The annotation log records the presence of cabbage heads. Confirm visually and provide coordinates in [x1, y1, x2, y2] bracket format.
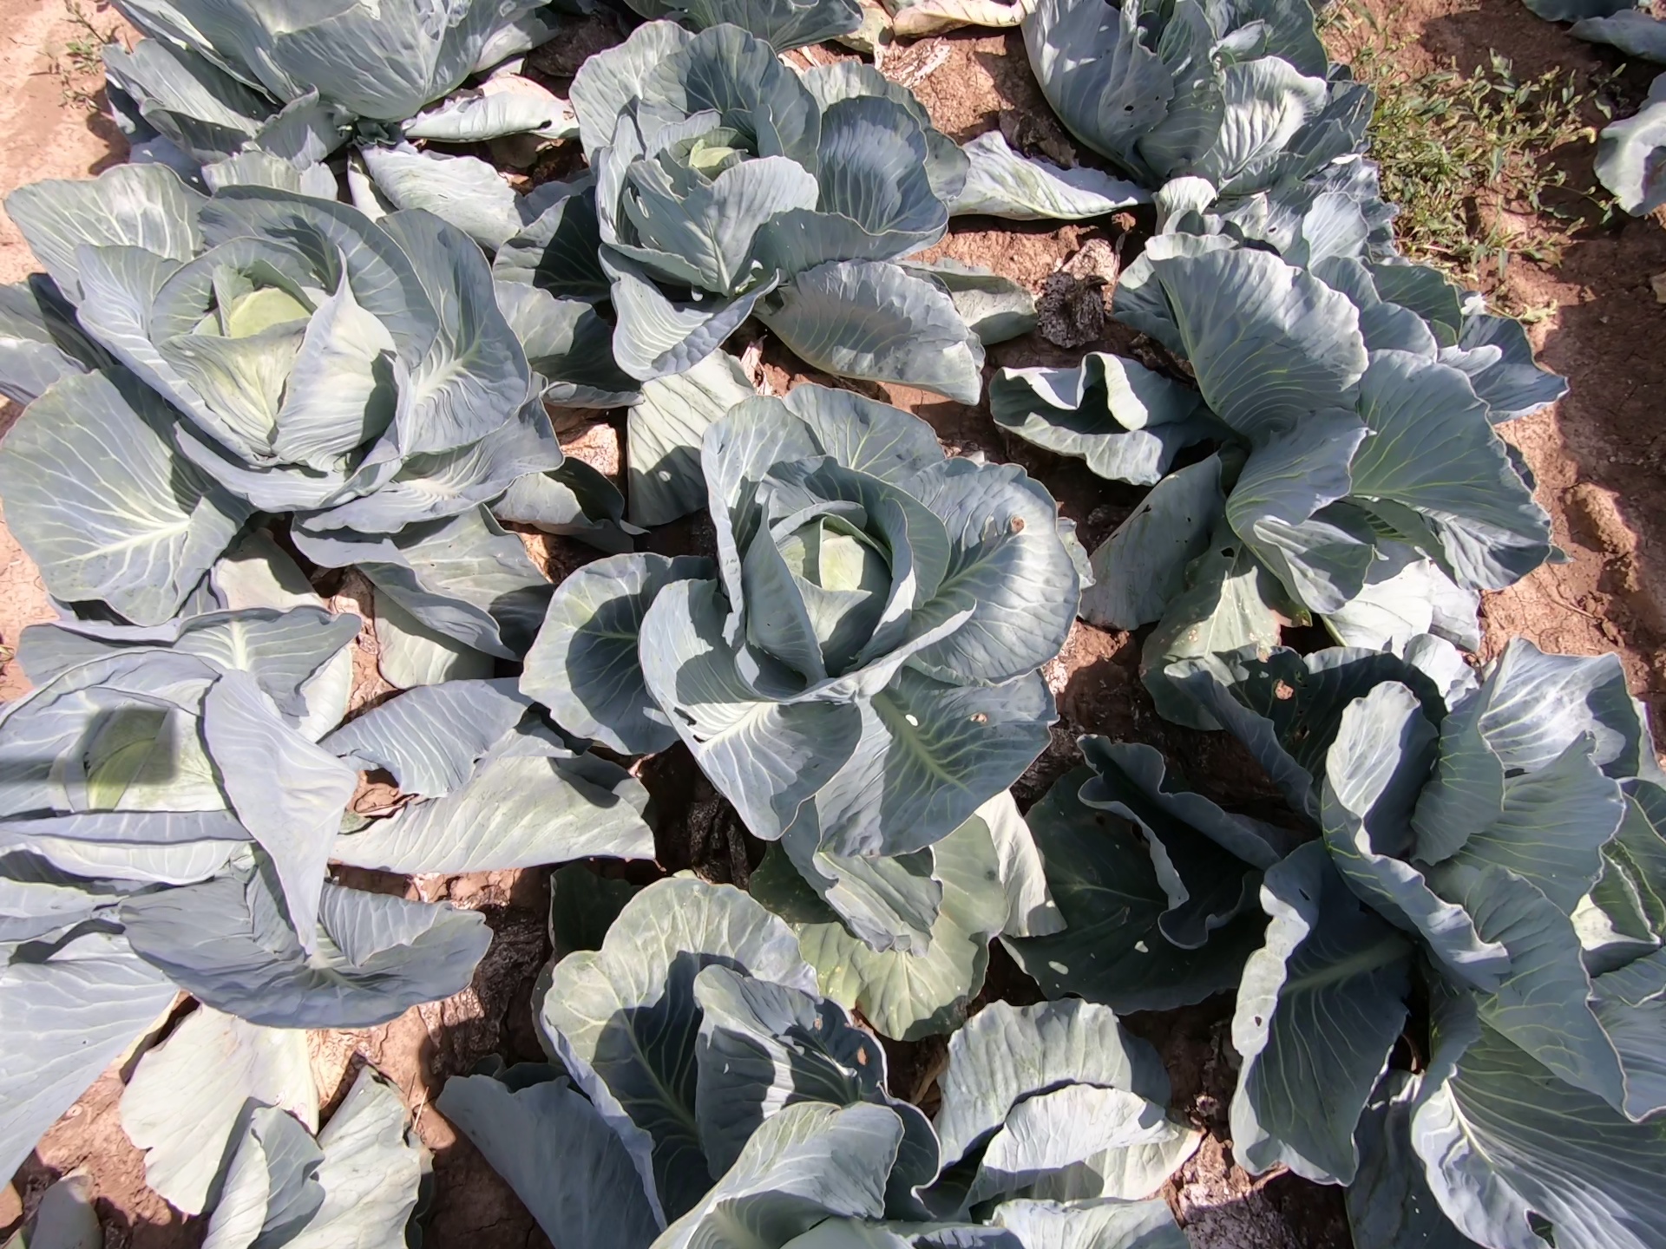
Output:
[661, 145, 771, 246]
[1486, 850, 1623, 1001]
[52, 679, 281, 861]
[751, 517, 894, 657]
[188, 287, 377, 454]
[1154, 56, 1278, 183]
